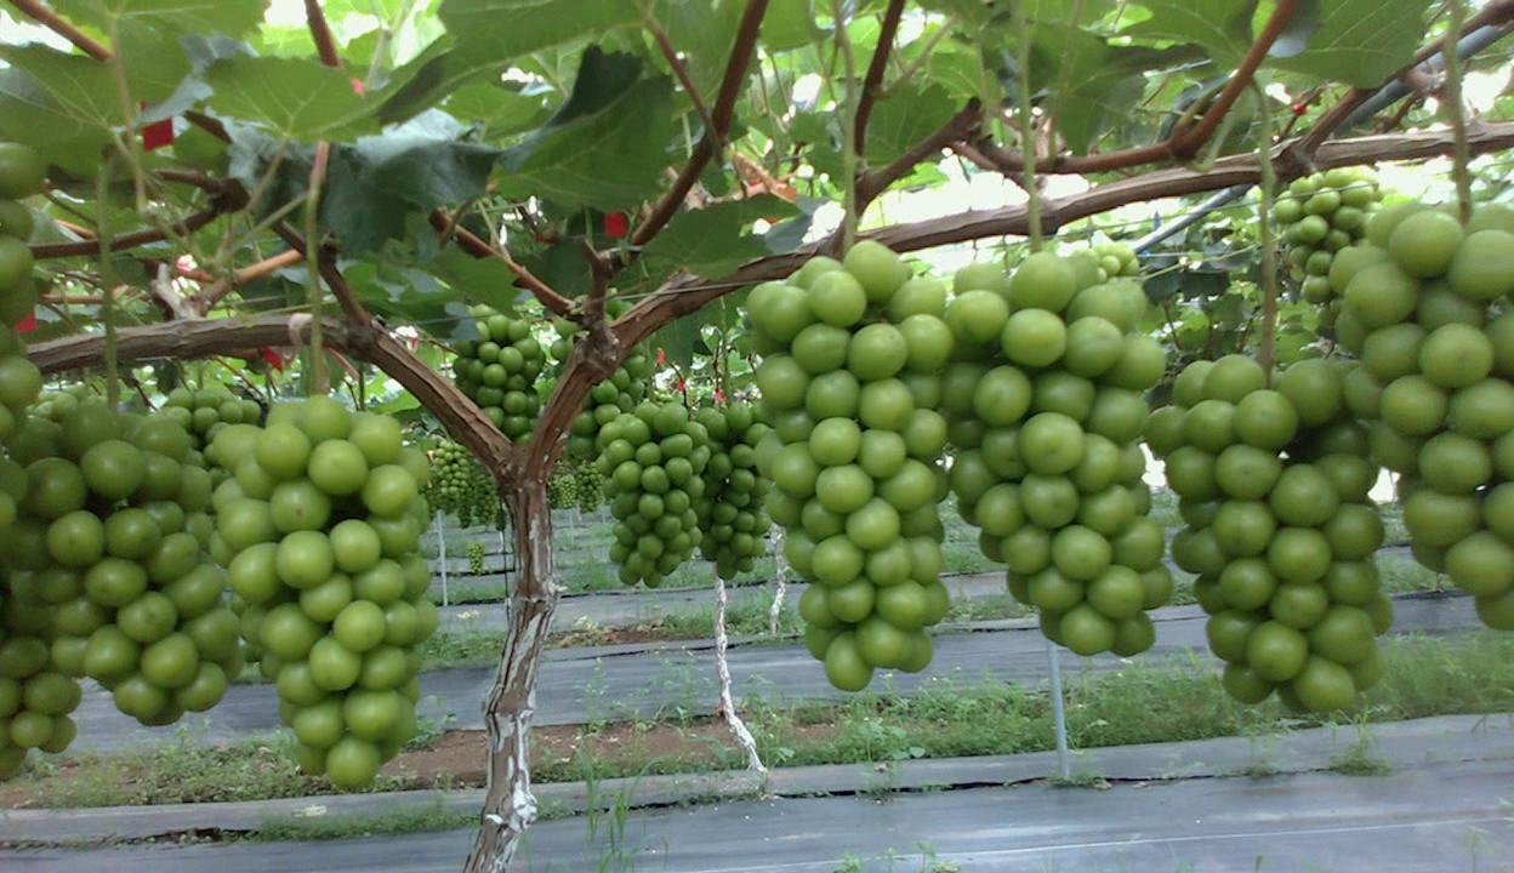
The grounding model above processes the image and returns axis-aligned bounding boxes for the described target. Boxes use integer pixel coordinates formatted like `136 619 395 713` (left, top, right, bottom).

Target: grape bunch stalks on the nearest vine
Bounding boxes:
832 0 856 253
1248 80 1277 388
1442 1 1478 228
307 139 330 395
1008 1 1041 253
95 145 118 411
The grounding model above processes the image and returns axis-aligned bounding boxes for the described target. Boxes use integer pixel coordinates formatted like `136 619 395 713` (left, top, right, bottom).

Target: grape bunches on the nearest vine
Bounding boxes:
744 240 956 691
1327 200 1513 633
4 405 246 727
210 394 440 789
940 250 1174 656
1144 353 1395 715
